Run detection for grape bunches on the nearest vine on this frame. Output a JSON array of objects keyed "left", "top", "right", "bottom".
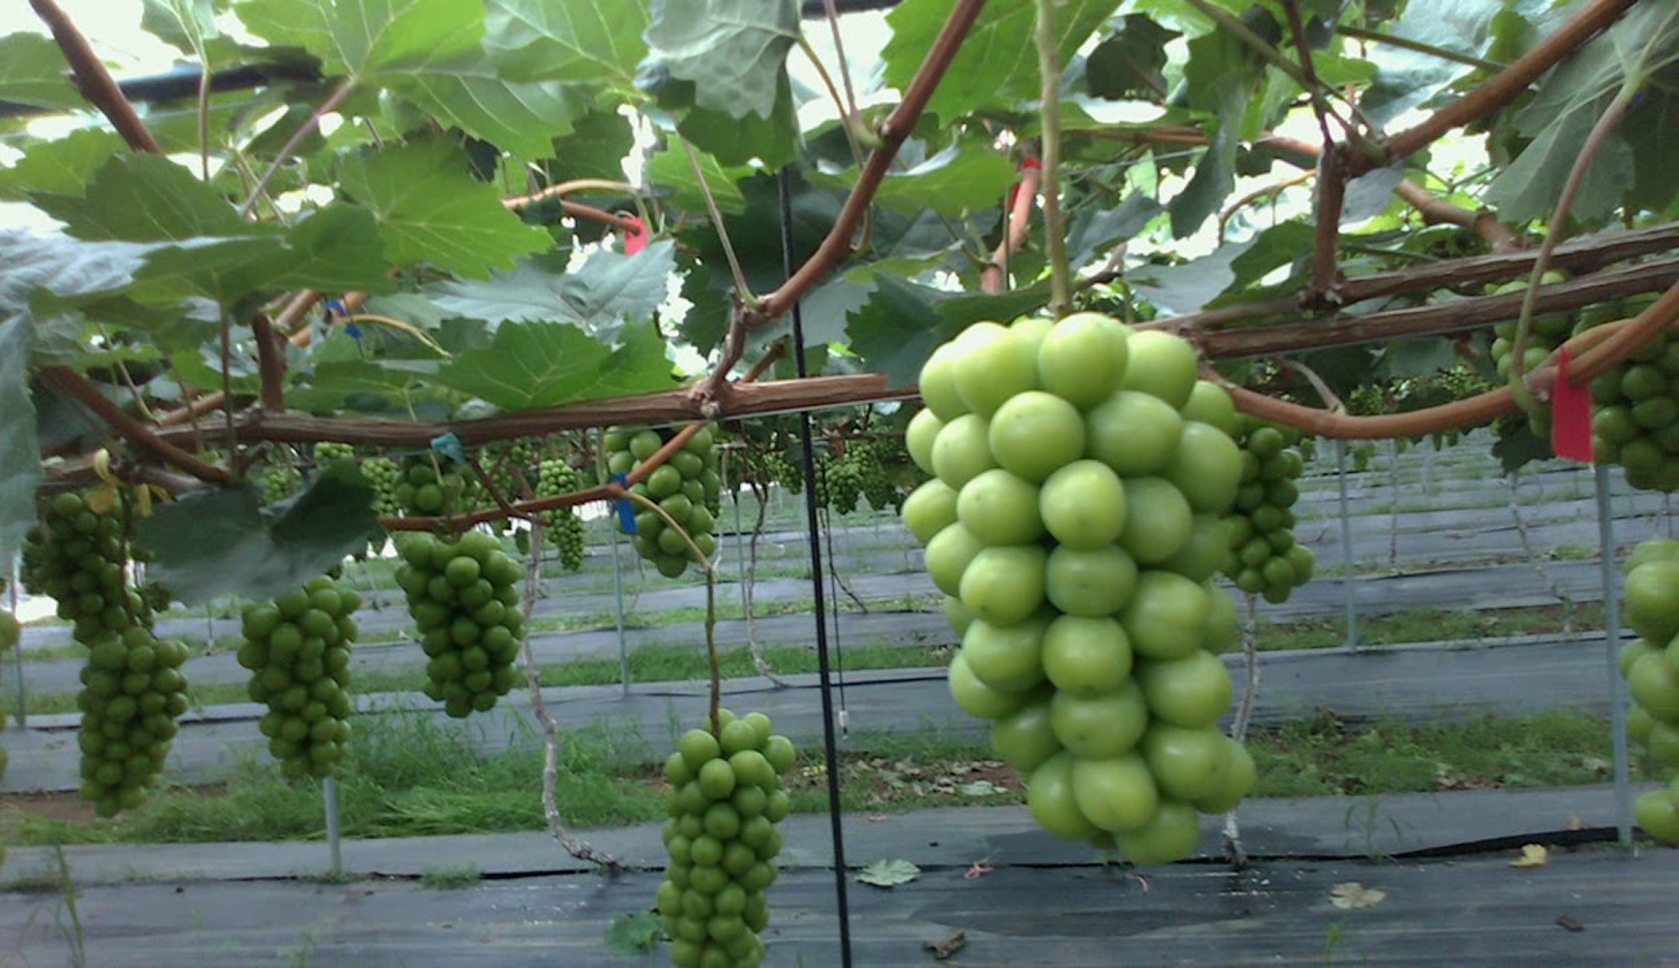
[
  {"left": 1616, "top": 536, "right": 1678, "bottom": 839},
  {"left": 904, "top": 311, "right": 1258, "bottom": 862}
]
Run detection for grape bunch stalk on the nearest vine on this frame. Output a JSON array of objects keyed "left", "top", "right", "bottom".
[{"left": 1033, "top": 0, "right": 1075, "bottom": 317}]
